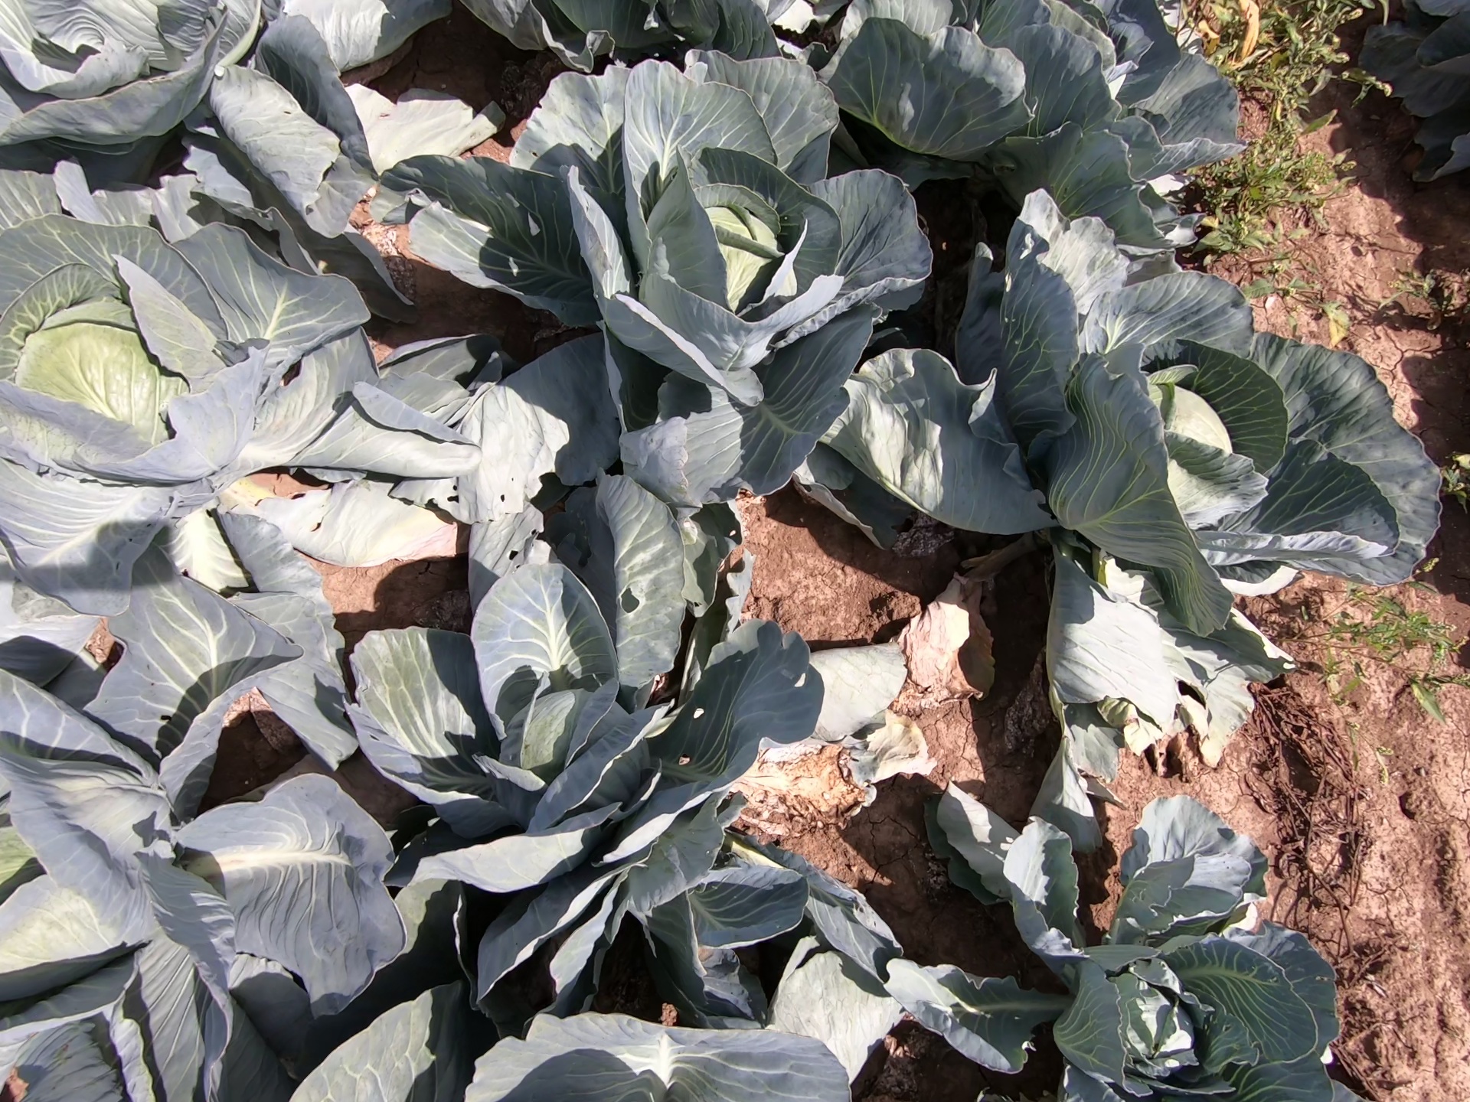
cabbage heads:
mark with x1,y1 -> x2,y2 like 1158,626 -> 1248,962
8,308 -> 230,493
495,691 -> 649,837
644,195 -> 795,367
0,765 -> 167,1003
1084,975 -> 1197,1076
42,0 -> 263,65
1077,376 -> 1236,525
